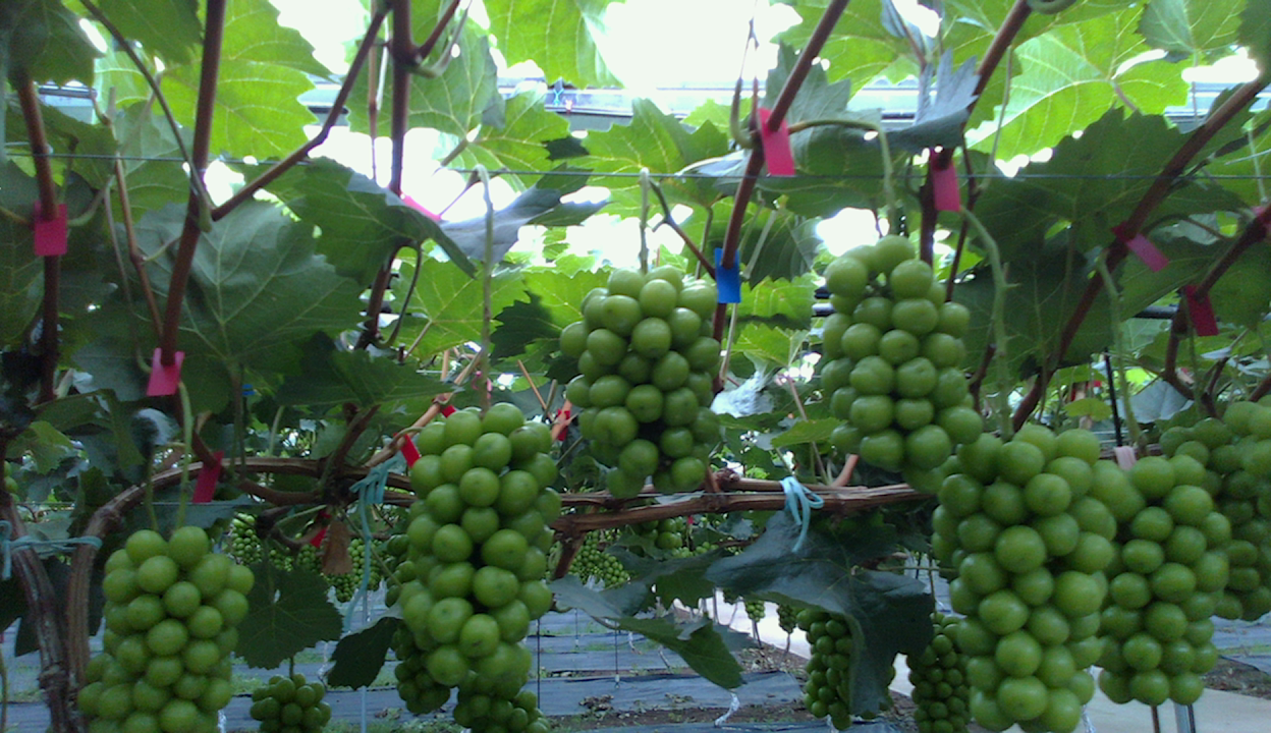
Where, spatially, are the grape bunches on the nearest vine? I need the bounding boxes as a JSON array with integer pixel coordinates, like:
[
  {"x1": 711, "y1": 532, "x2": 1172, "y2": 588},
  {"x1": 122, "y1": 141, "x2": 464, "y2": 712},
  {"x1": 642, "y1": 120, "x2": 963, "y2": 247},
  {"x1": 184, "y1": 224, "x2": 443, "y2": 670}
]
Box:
[
  {"x1": 1095, "y1": 456, "x2": 1231, "y2": 707},
  {"x1": 76, "y1": 526, "x2": 255, "y2": 732},
  {"x1": 560, "y1": 265, "x2": 720, "y2": 498},
  {"x1": 820, "y1": 236, "x2": 986, "y2": 492},
  {"x1": 1158, "y1": 394, "x2": 1269, "y2": 620},
  {"x1": 402, "y1": 402, "x2": 560, "y2": 685},
  {"x1": 932, "y1": 426, "x2": 1124, "y2": 732}
]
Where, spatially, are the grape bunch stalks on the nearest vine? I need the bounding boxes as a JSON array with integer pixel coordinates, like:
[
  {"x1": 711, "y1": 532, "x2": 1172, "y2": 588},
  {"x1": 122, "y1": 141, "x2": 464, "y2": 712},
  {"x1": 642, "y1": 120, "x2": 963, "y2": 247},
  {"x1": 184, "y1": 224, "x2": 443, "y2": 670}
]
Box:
[
  {"x1": 638, "y1": 167, "x2": 652, "y2": 275},
  {"x1": 175, "y1": 379, "x2": 192, "y2": 528},
  {"x1": 1179, "y1": 289, "x2": 1205, "y2": 421},
  {"x1": 787, "y1": 118, "x2": 897, "y2": 236},
  {"x1": 1097, "y1": 248, "x2": 1147, "y2": 457},
  {"x1": 478, "y1": 166, "x2": 495, "y2": 408},
  {"x1": 955, "y1": 204, "x2": 1012, "y2": 440}
]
